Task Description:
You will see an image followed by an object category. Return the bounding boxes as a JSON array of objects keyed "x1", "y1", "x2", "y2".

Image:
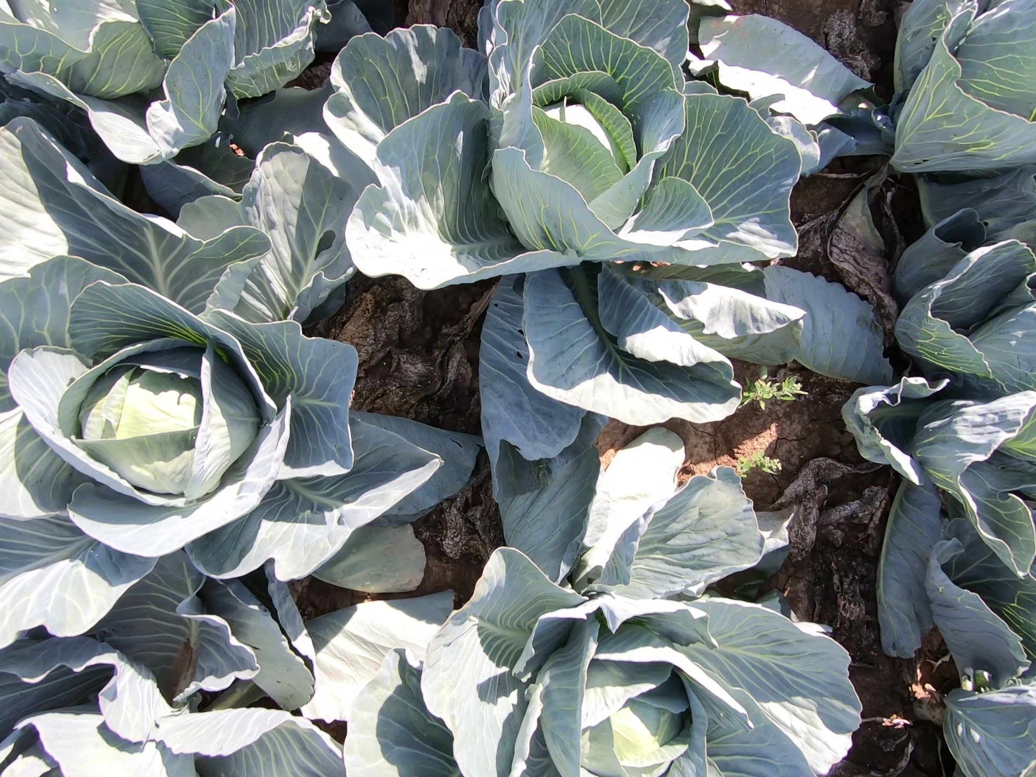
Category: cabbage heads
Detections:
[
  {"x1": 546, "y1": 641, "x2": 689, "y2": 775},
  {"x1": 1, "y1": 720, "x2": 165, "y2": 776},
  {"x1": 532, "y1": 94, "x2": 632, "y2": 212},
  {"x1": 71, "y1": 360, "x2": 256, "y2": 496},
  {"x1": 11, "y1": 7, "x2": 173, "y2": 94}
]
